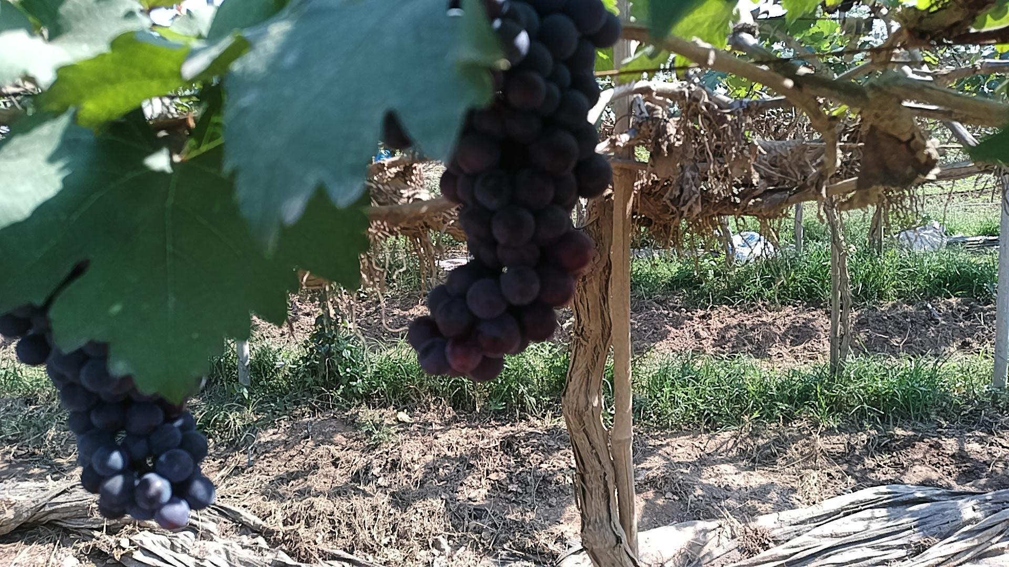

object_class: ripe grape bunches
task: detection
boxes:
[408,0,621,380]
[0,261,214,529]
